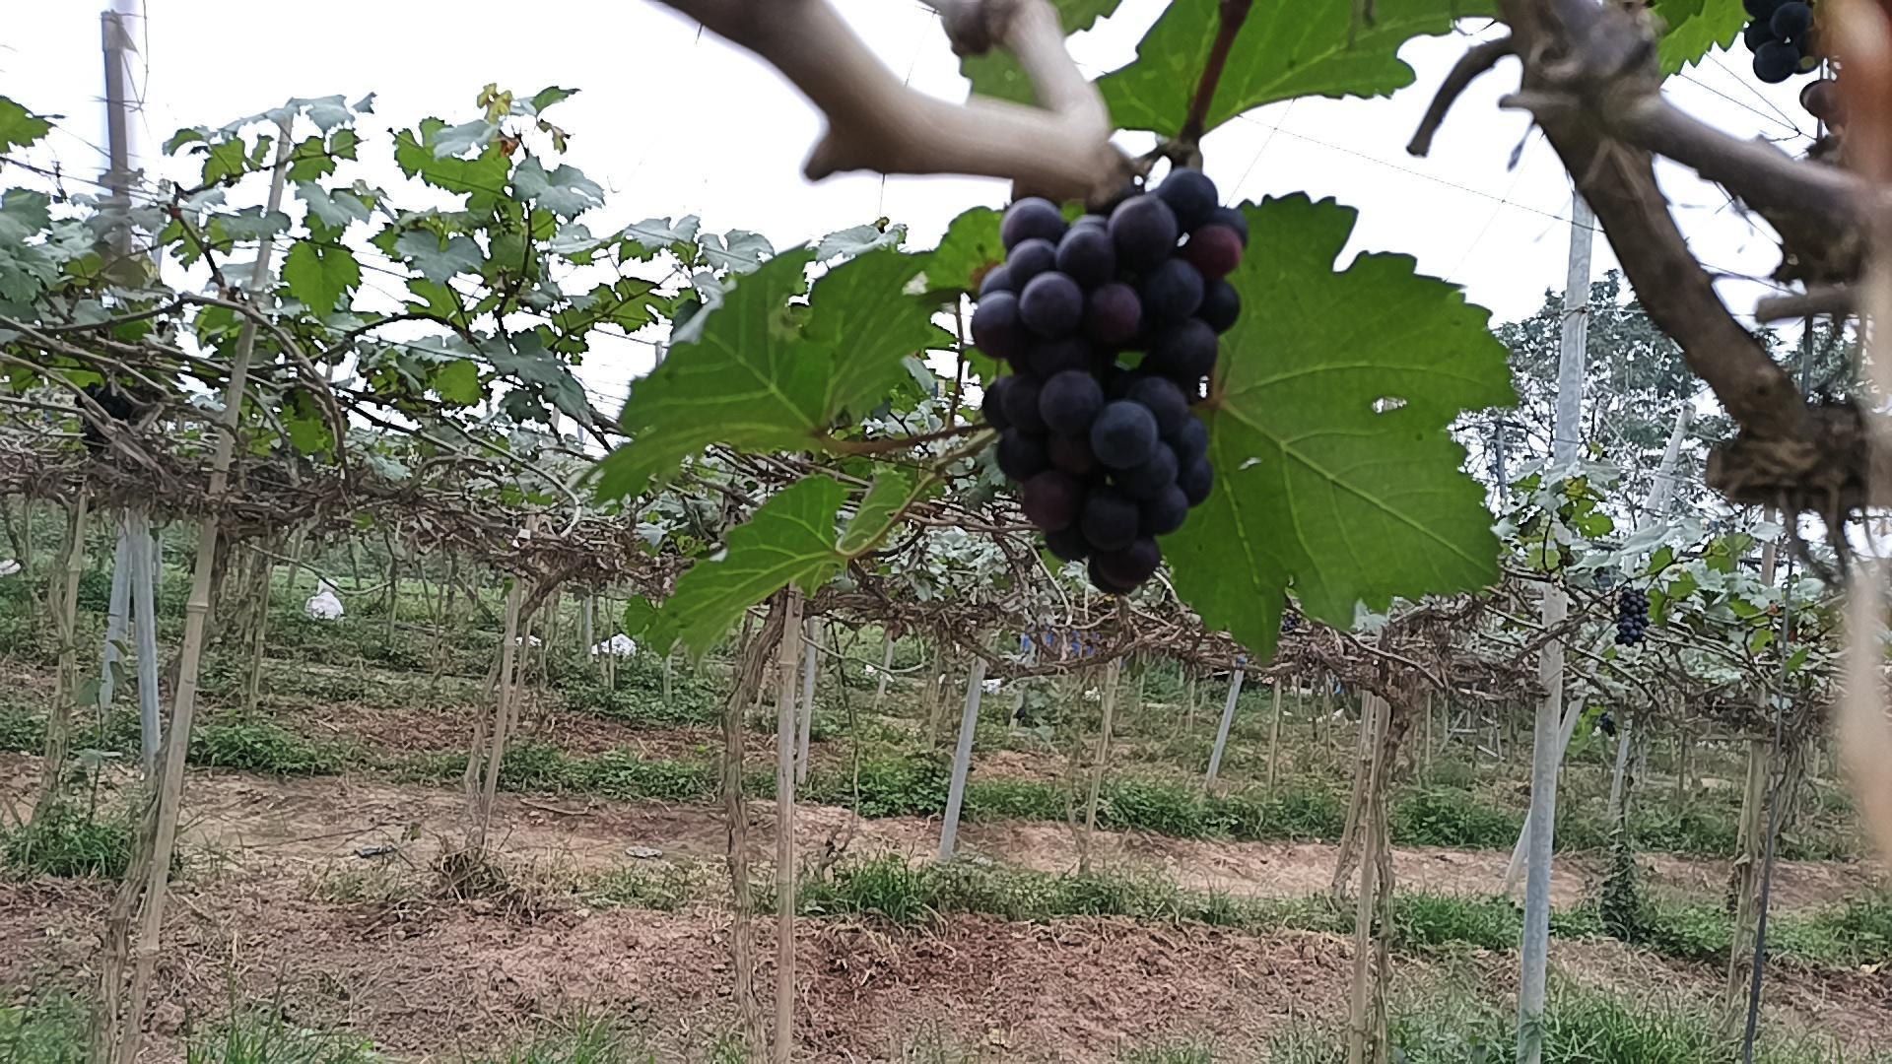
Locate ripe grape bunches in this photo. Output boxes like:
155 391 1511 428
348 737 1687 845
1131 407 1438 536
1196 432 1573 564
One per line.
973 168 1248 593
1743 0 1844 135
1592 709 1621 738
1613 584 1650 648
